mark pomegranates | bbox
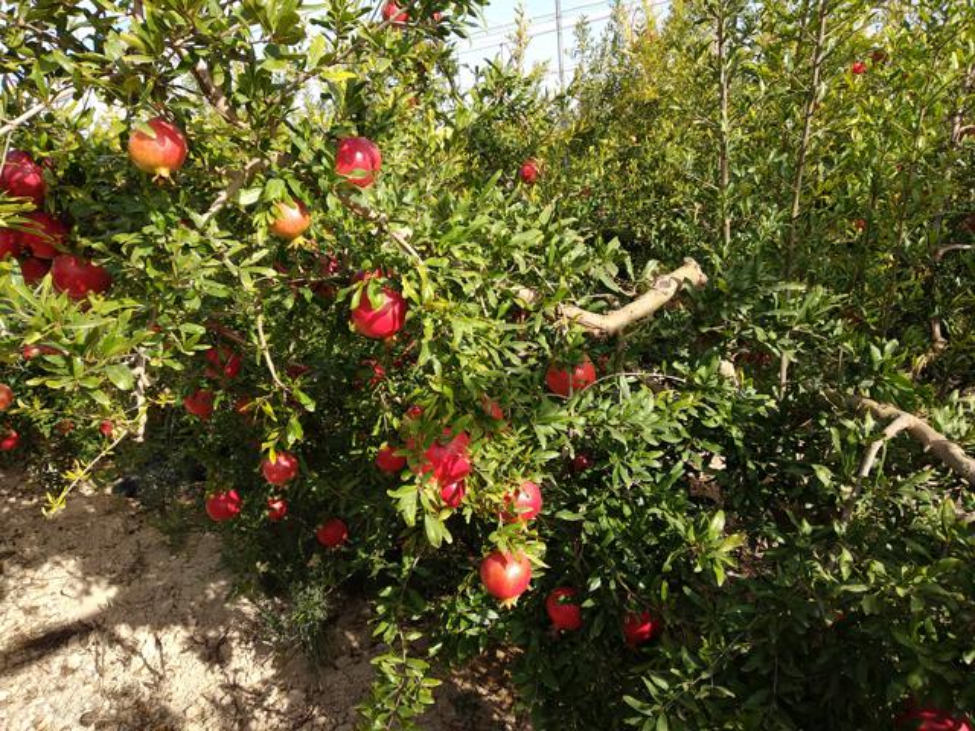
[518,163,539,186]
[897,707,975,731]
[268,196,312,253]
[544,586,585,635]
[350,267,408,340]
[261,451,300,486]
[183,390,213,419]
[381,0,411,21]
[126,117,189,187]
[50,251,113,298]
[422,426,472,490]
[206,489,244,522]
[0,381,14,411]
[21,253,53,285]
[478,550,533,611]
[334,137,382,189]
[440,480,465,509]
[0,419,21,452]
[547,364,597,397]
[20,212,70,260]
[622,611,660,649]
[317,518,349,553]
[0,149,55,206]
[0,227,24,259]
[206,347,241,381]
[267,493,291,522]
[506,480,541,521]
[373,446,407,477]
